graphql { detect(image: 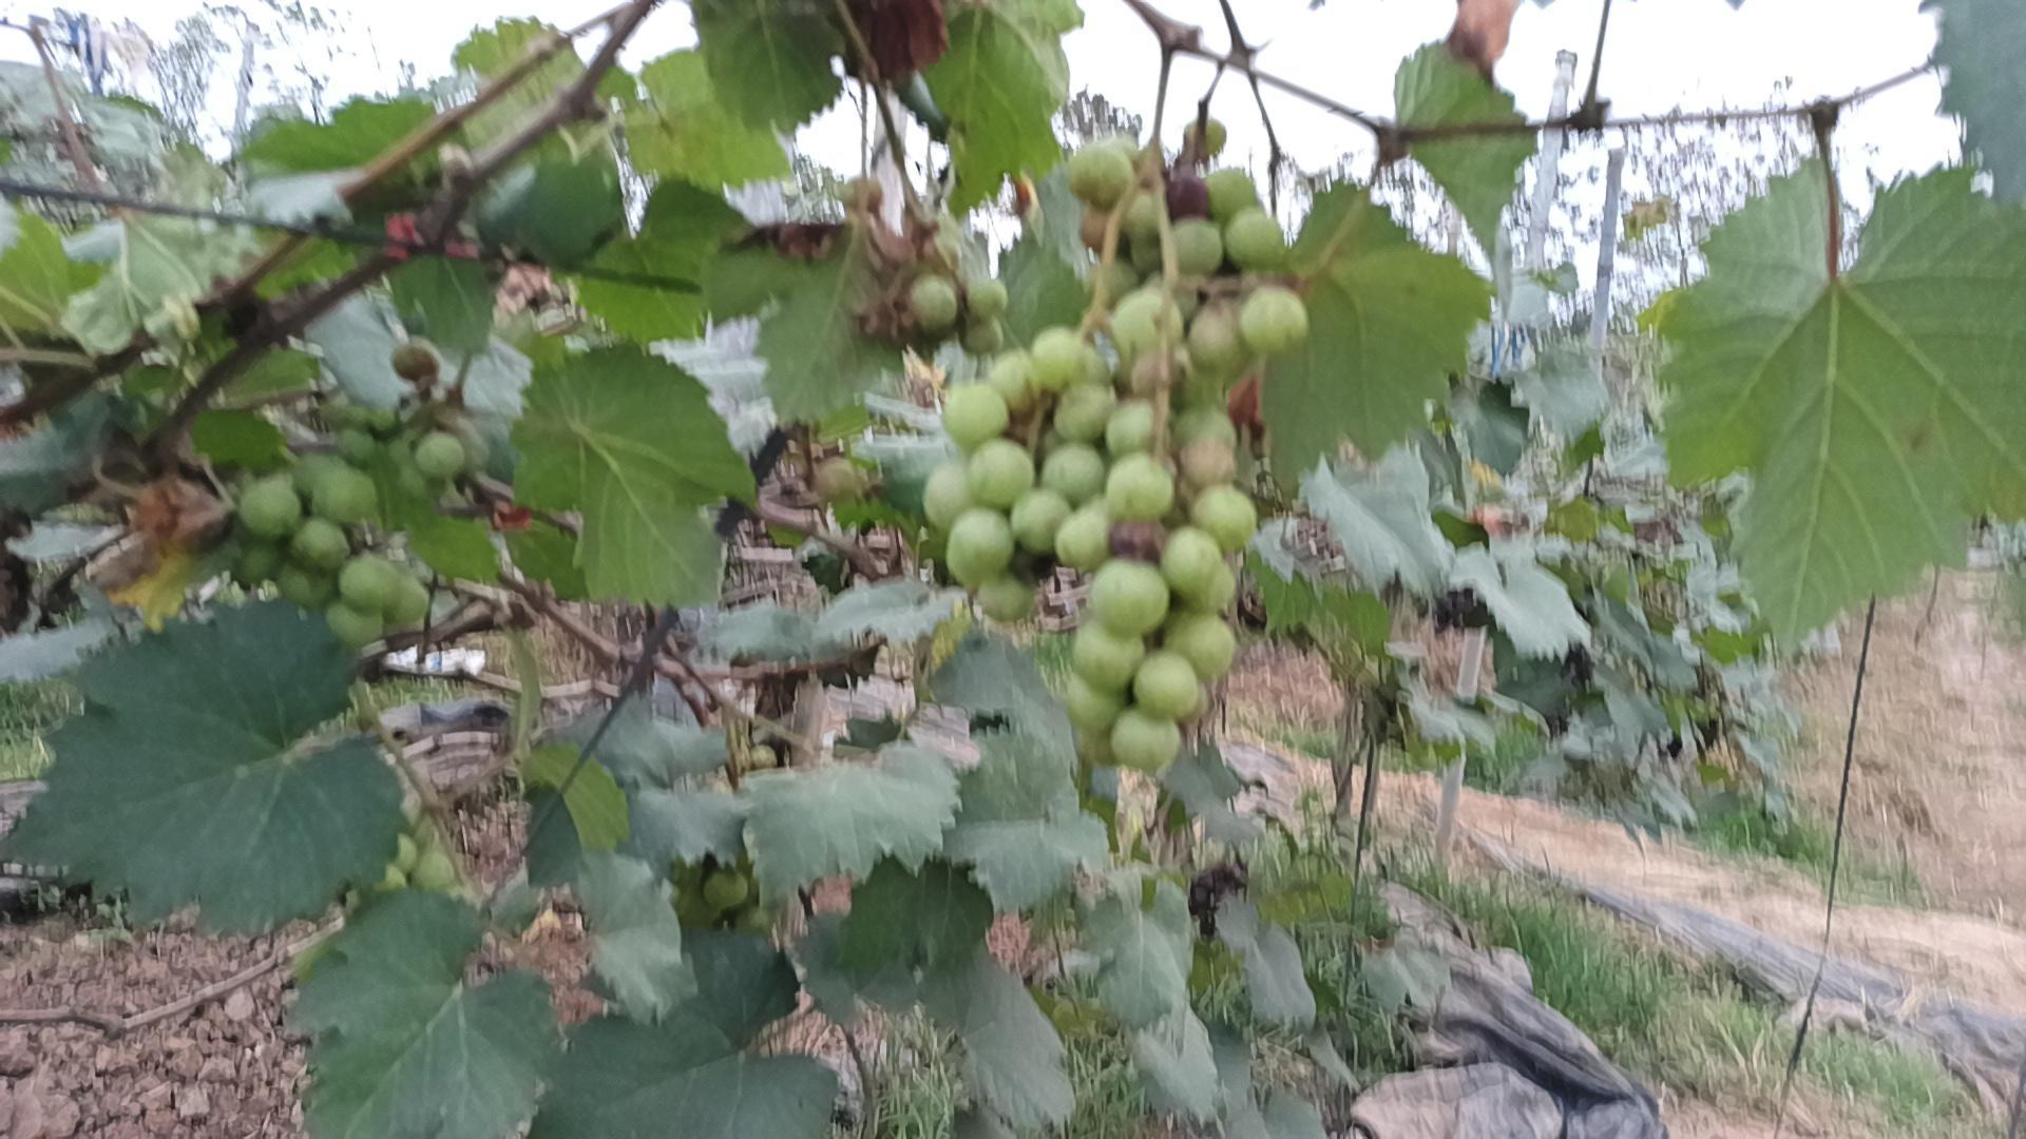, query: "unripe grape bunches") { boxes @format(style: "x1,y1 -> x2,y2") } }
885,219 -> 1006,358
372,811 -> 469,895
668,852 -> 769,933
234,400 -> 481,649
922,141 -> 1307,772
